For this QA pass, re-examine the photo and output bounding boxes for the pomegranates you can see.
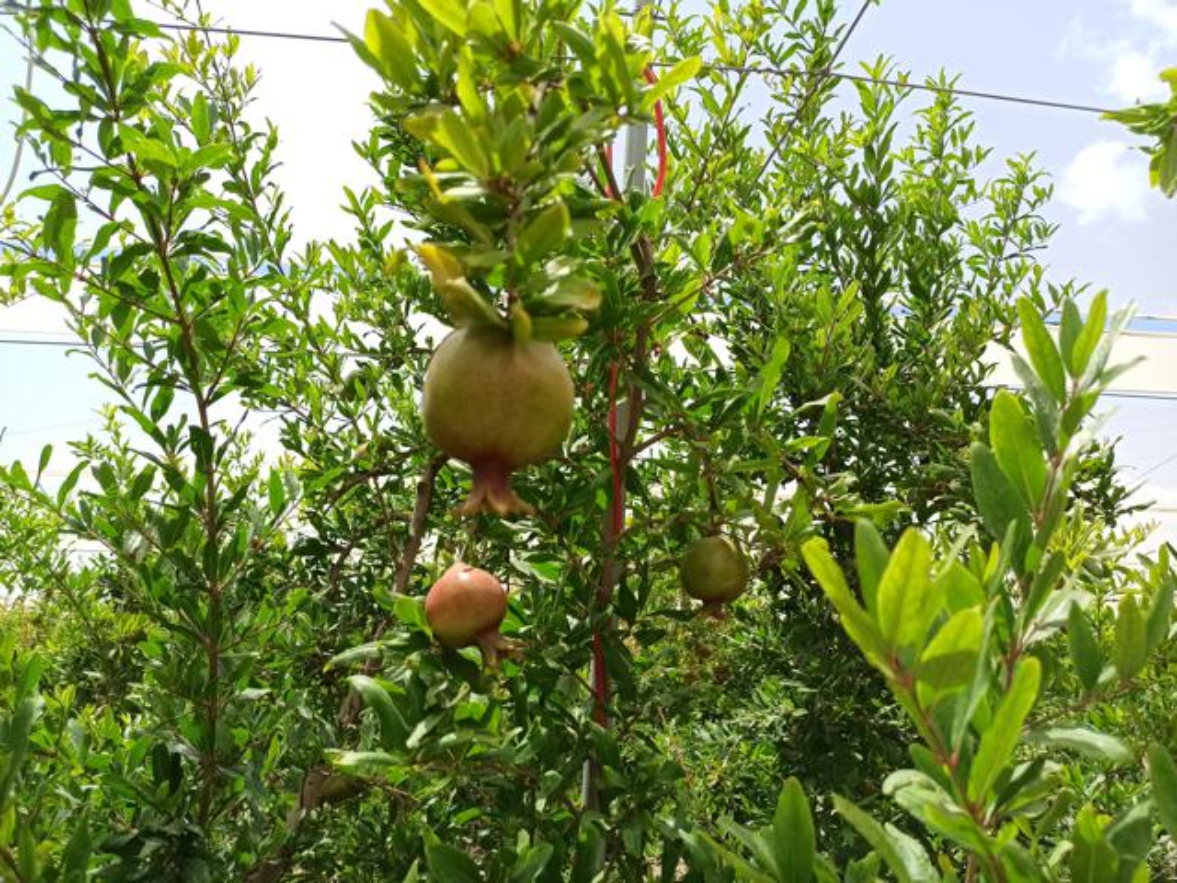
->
[421,326,576,521]
[423,561,526,673]
[680,537,748,620]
